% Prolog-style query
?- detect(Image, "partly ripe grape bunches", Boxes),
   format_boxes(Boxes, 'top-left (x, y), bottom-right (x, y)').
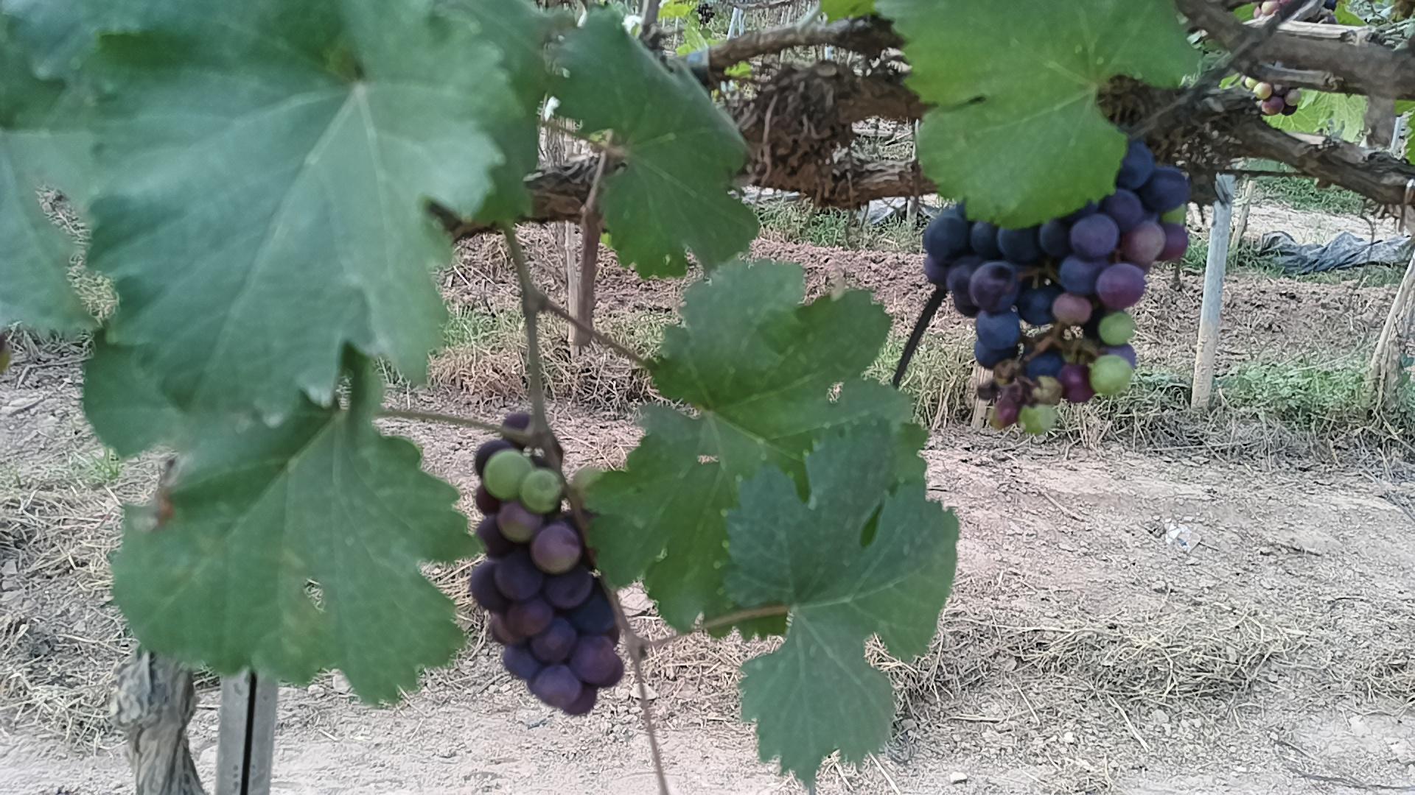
top-left (1242, 0), bottom-right (1339, 118)
top-left (923, 140), bottom-right (1189, 433)
top-left (470, 411), bottom-right (624, 715)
